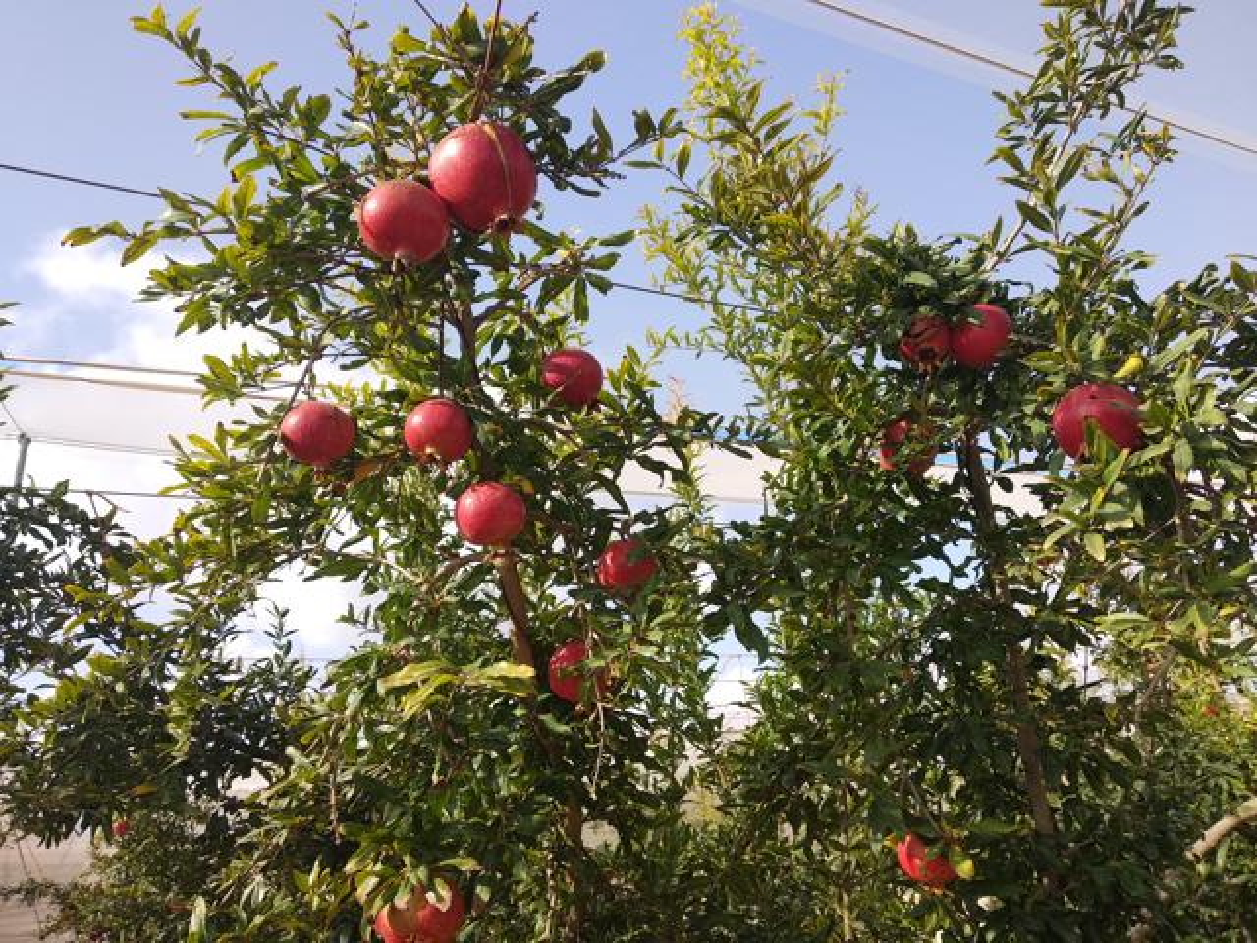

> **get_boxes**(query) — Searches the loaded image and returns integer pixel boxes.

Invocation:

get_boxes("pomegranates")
[456,479,528,550]
[548,638,585,703]
[597,538,654,589]
[355,181,450,275]
[540,348,603,403]
[898,318,953,373]
[426,122,538,232]
[878,416,939,473]
[281,399,355,477]
[951,305,1011,365]
[403,397,473,466]
[373,880,467,943]
[1053,381,1149,460]
[896,831,956,882]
